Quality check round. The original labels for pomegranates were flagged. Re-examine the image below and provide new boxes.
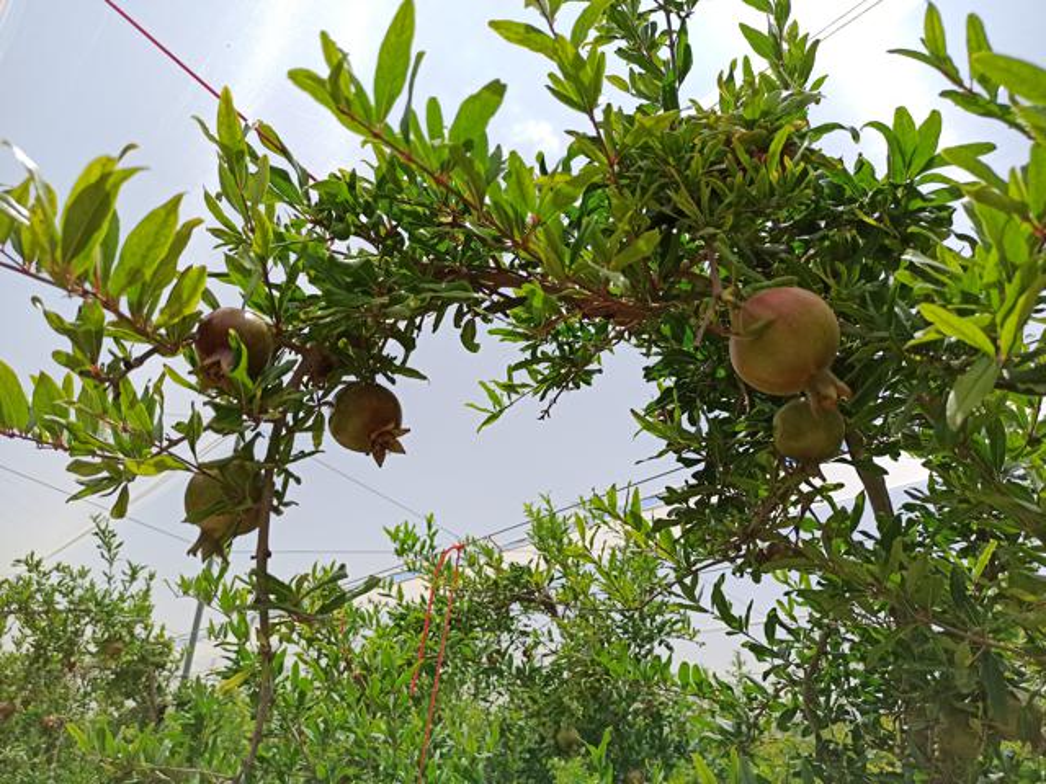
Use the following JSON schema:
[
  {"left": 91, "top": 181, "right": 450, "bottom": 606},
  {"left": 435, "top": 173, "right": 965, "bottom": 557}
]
[
  {"left": 771, "top": 400, "right": 845, "bottom": 479},
  {"left": 327, "top": 382, "right": 412, "bottom": 469},
  {"left": 0, "top": 701, "right": 15, "bottom": 720},
  {"left": 556, "top": 728, "right": 579, "bottom": 750},
  {"left": 729, "top": 287, "right": 852, "bottom": 420},
  {"left": 41, "top": 715, "right": 56, "bottom": 730},
  {"left": 185, "top": 469, "right": 261, "bottom": 565},
  {"left": 624, "top": 769, "right": 646, "bottom": 784},
  {"left": 105, "top": 640, "right": 124, "bottom": 655},
  {"left": 188, "top": 305, "right": 273, "bottom": 394}
]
